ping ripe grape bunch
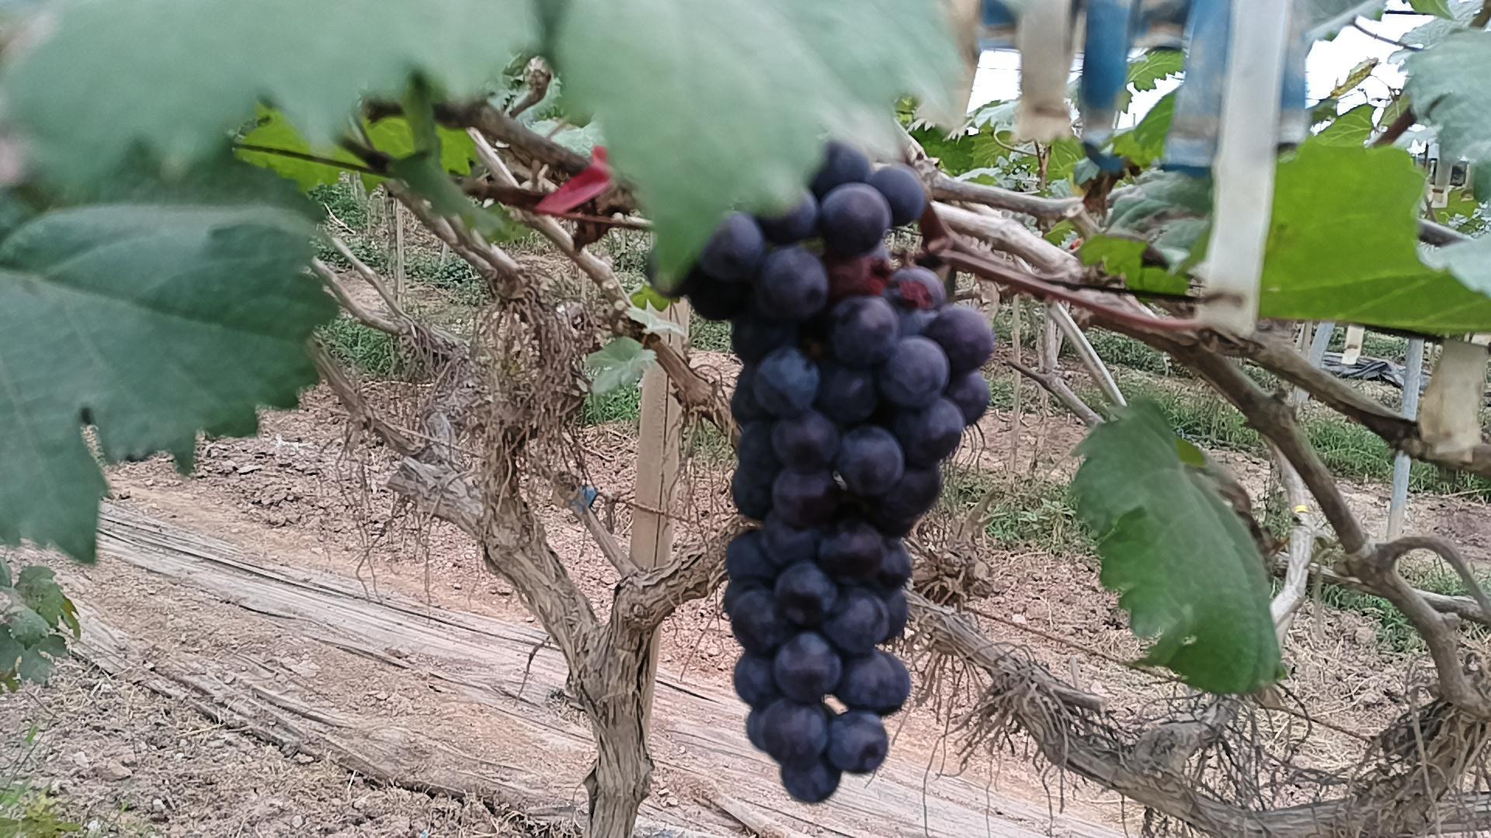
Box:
[683,144,993,802]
